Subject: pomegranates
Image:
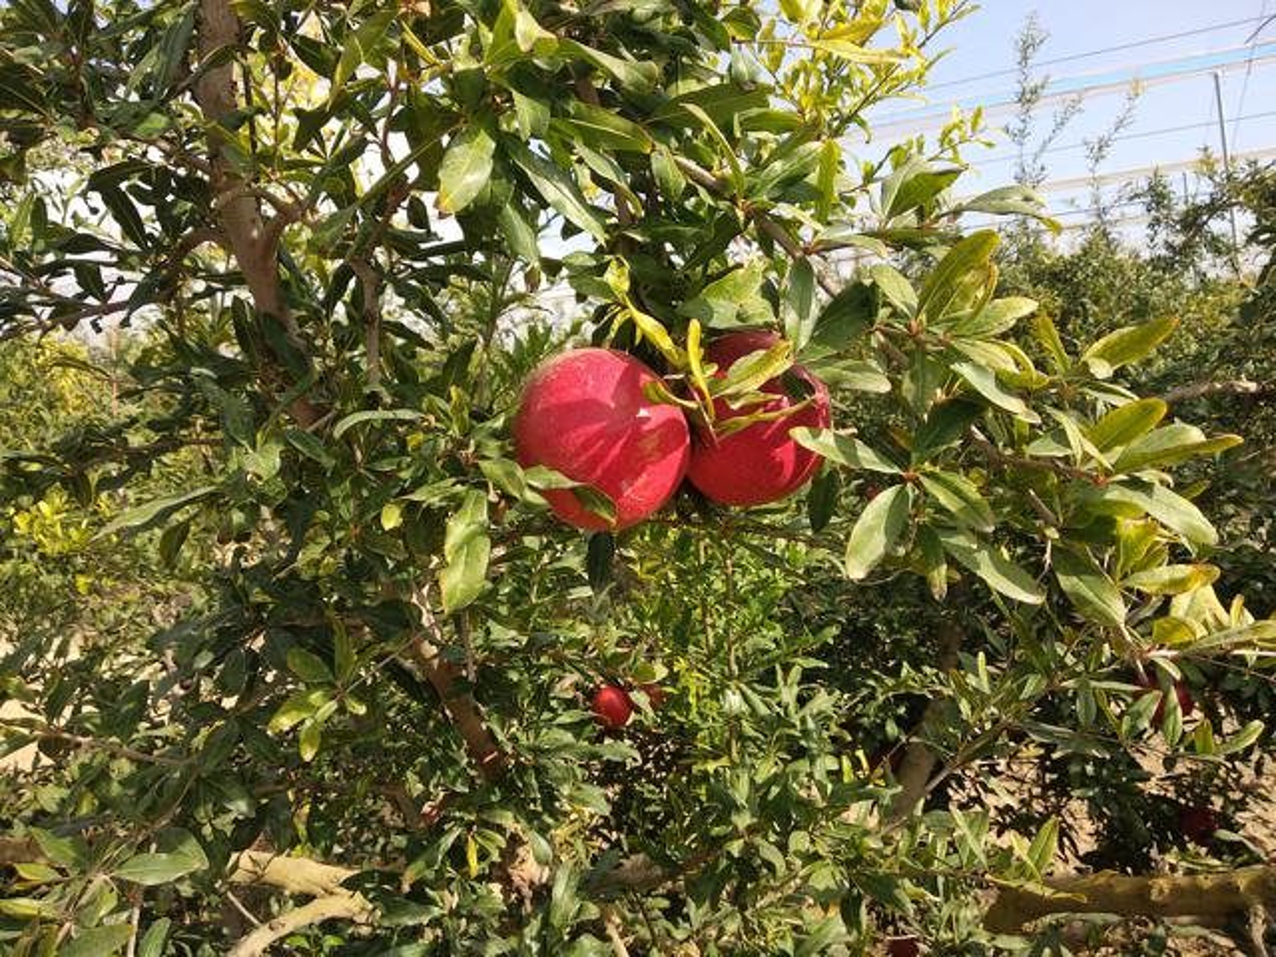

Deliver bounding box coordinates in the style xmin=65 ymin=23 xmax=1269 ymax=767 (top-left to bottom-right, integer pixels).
xmin=686 ymin=331 xmax=829 ymax=506
xmin=590 ymin=684 xmax=634 ymax=730
xmin=510 ymin=349 xmax=690 ymax=530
